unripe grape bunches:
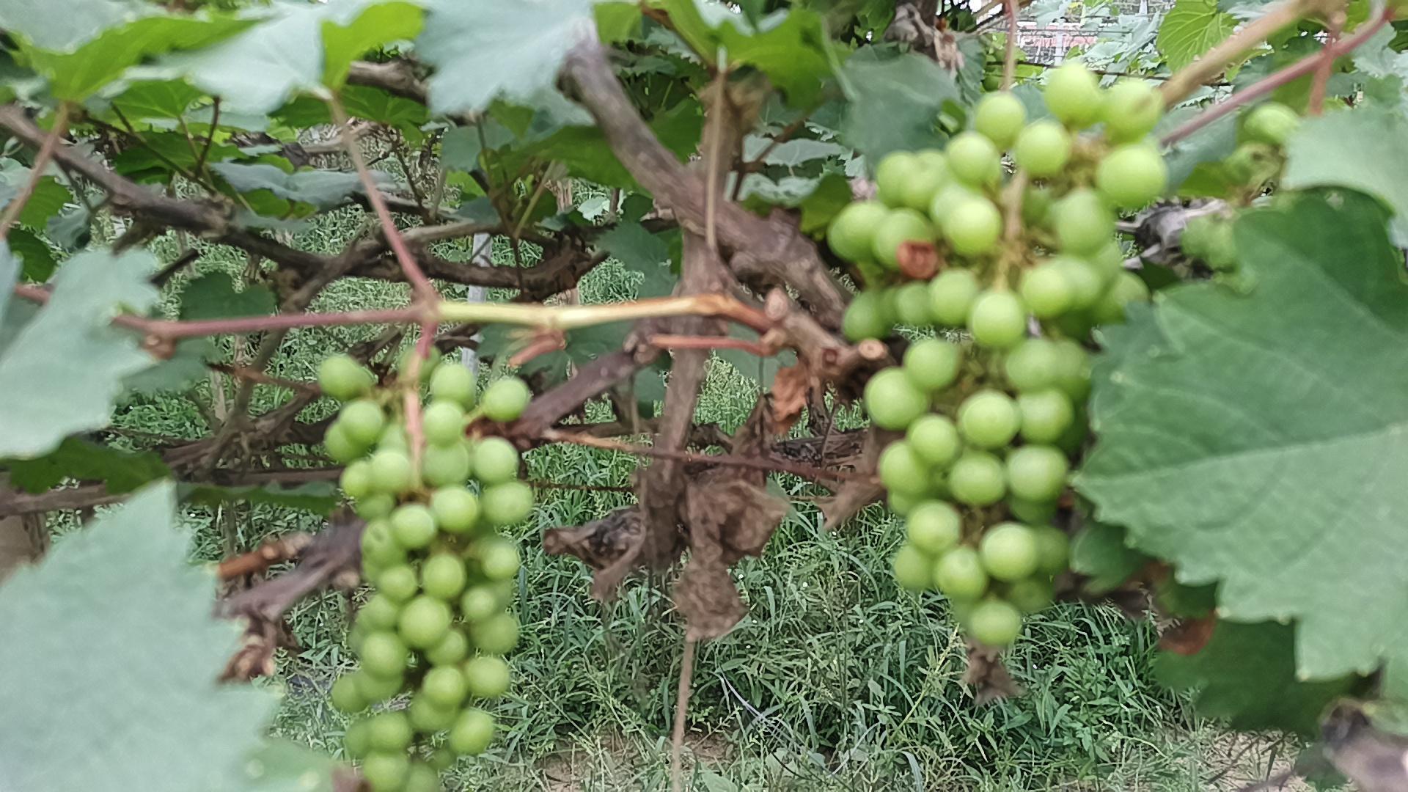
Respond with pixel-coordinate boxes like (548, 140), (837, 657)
(315, 340), (533, 791)
(830, 65), (1165, 650)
